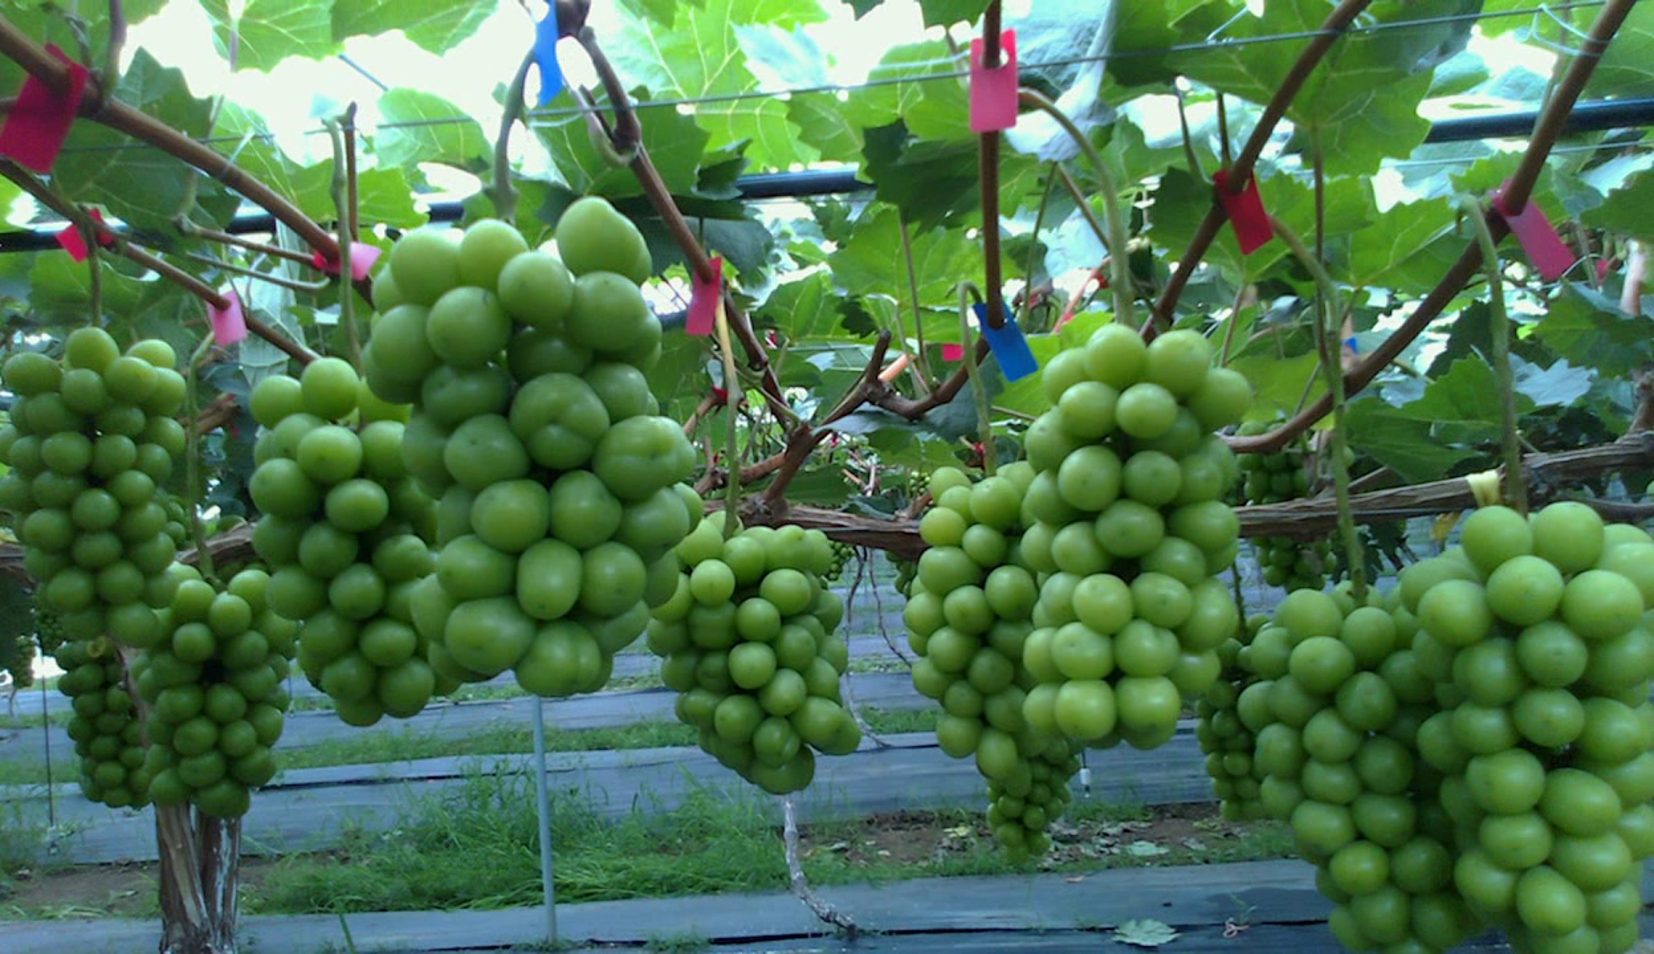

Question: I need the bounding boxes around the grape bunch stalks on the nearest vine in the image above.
[1455,195,1528,513]
[322,103,360,374]
[1051,107,1137,326]
[187,339,217,584]
[718,309,745,538]
[1276,228,1369,604]
[945,284,994,474]
[85,232,102,326]
[484,49,533,221]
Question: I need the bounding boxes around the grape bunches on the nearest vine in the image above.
[366,197,705,697]
[1397,501,1653,953]
[649,511,861,795]
[1234,580,1478,953]
[129,563,297,816]
[1022,323,1254,753]
[903,461,1044,780]
[0,327,184,647]
[247,358,460,727]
